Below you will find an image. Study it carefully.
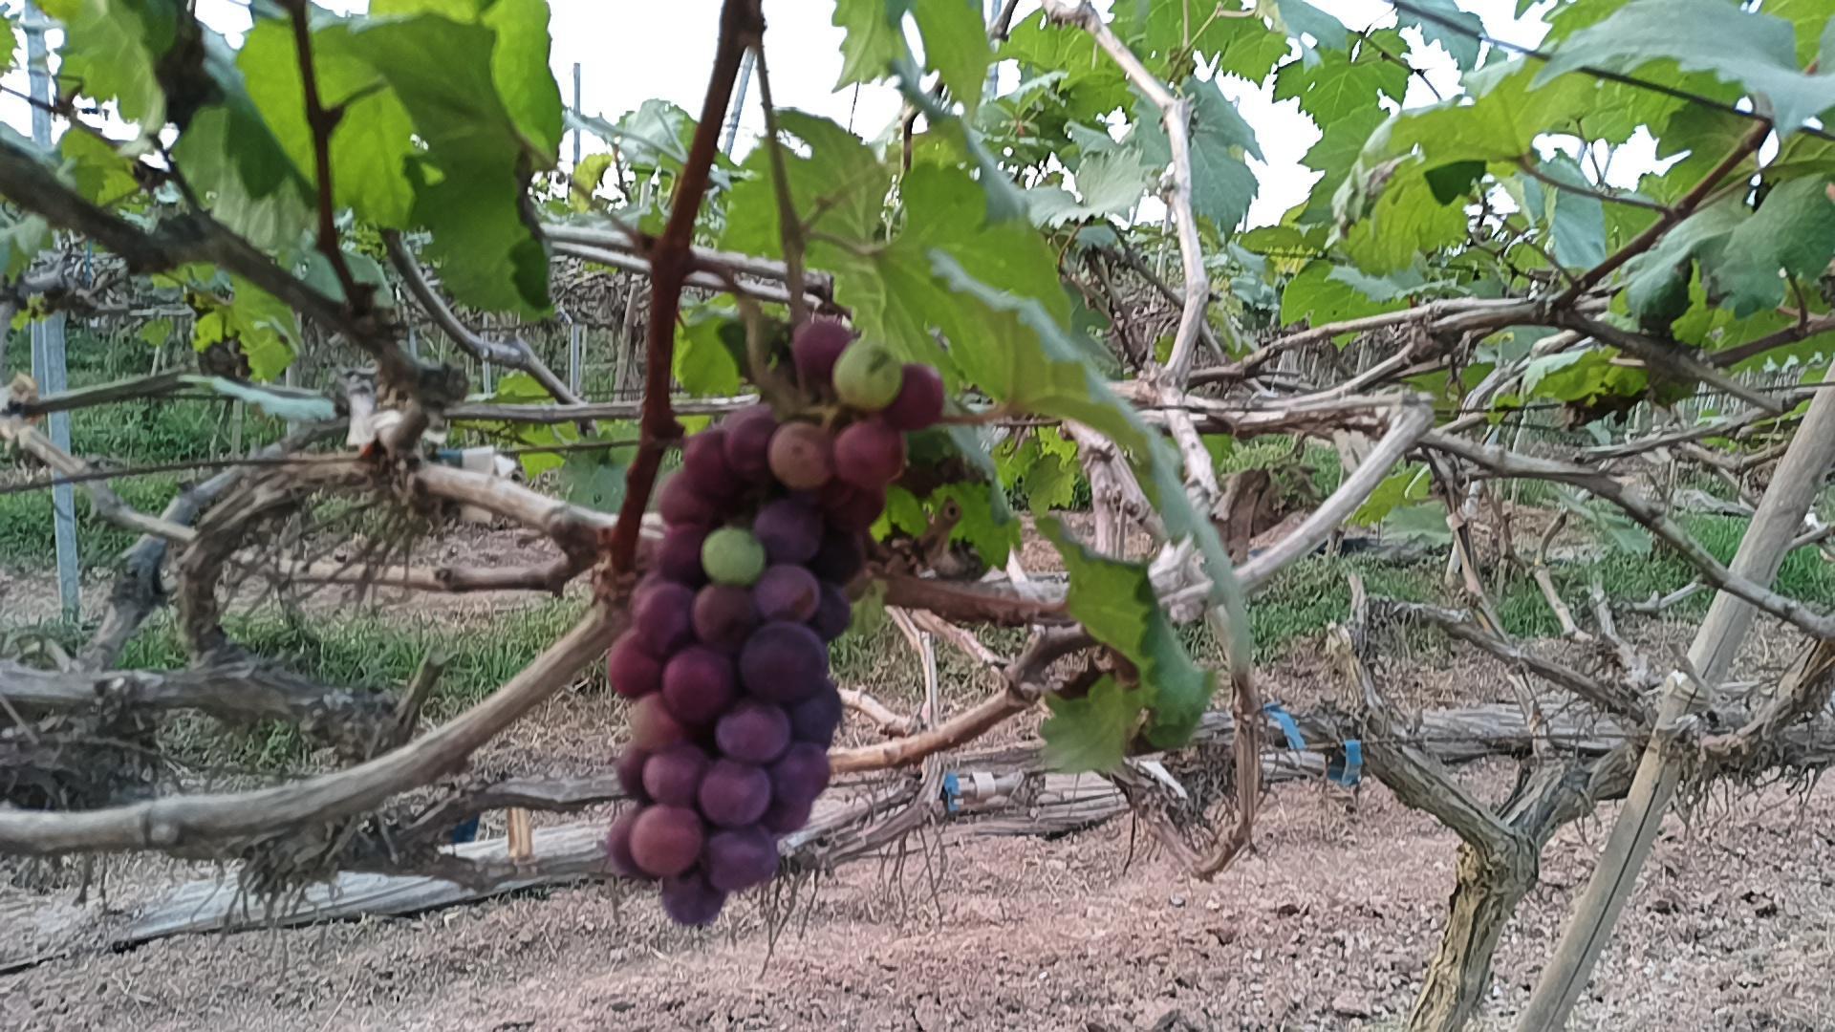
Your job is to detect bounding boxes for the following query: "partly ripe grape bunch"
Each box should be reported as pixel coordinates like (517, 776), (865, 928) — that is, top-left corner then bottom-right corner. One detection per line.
(608, 318), (945, 925)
